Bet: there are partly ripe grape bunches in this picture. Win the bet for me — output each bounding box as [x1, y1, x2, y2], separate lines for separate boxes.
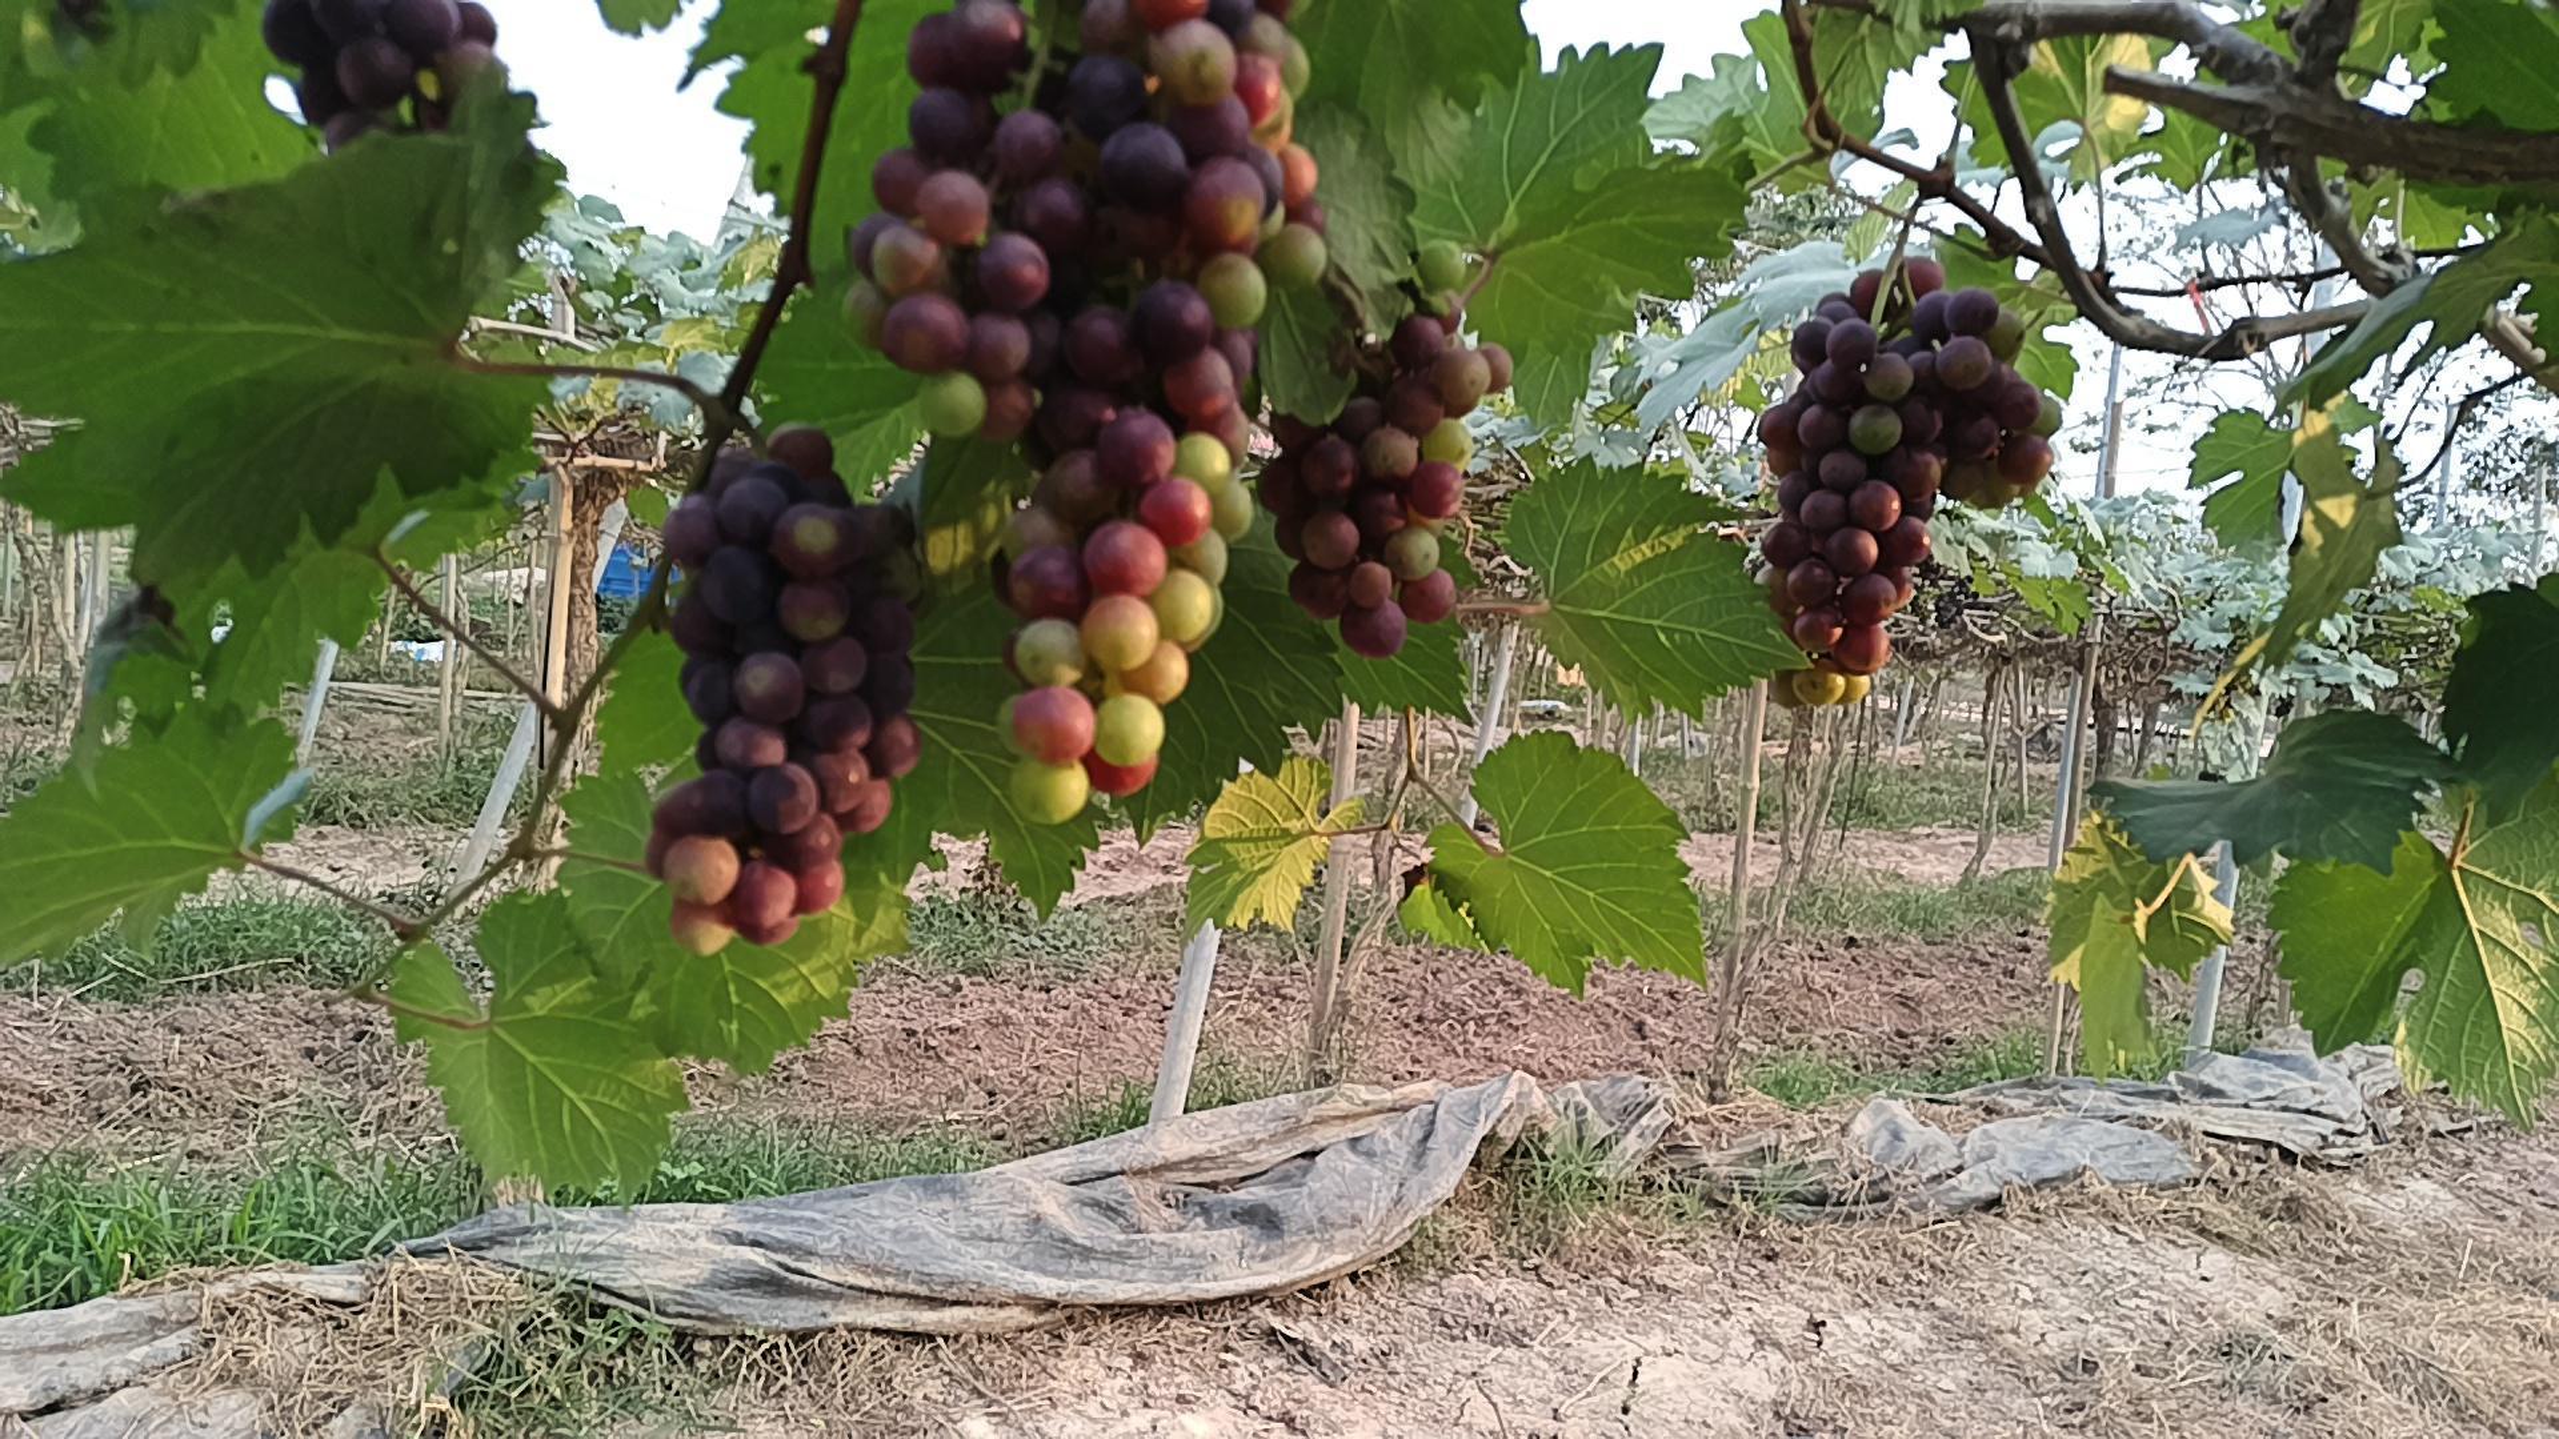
[1257, 244, 1513, 658]
[1758, 254, 2062, 709]
[645, 426, 920, 946]
[263, 0, 502, 149]
[848, 0, 1327, 826]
